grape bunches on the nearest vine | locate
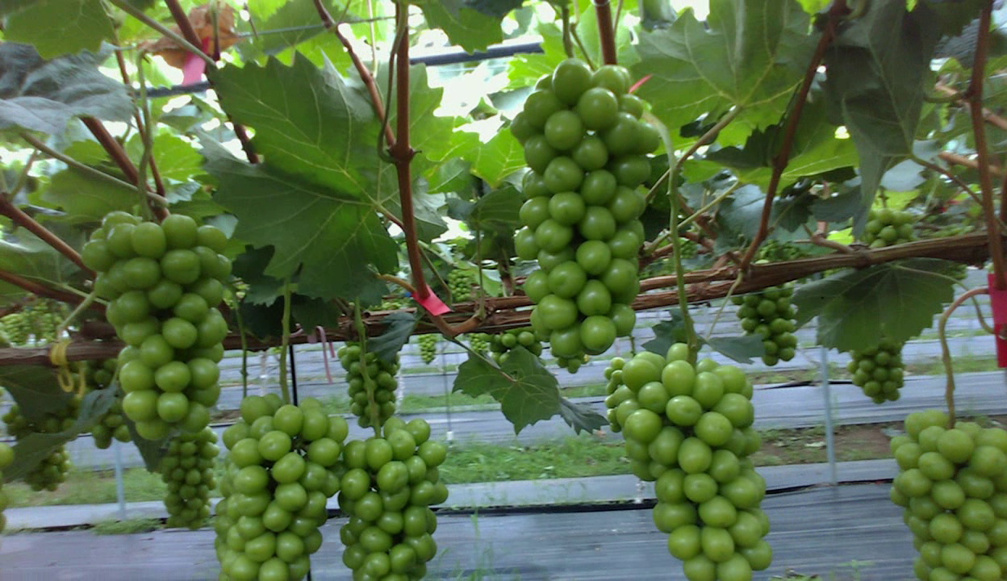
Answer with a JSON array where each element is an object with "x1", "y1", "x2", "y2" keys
[
  {"x1": 886, "y1": 408, "x2": 1006, "y2": 580},
  {"x1": 336, "y1": 416, "x2": 446, "y2": 580},
  {"x1": 81, "y1": 211, "x2": 230, "y2": 438},
  {"x1": 513, "y1": 60, "x2": 661, "y2": 360},
  {"x1": 612, "y1": 342, "x2": 774, "y2": 579},
  {"x1": 212, "y1": 392, "x2": 348, "y2": 580}
]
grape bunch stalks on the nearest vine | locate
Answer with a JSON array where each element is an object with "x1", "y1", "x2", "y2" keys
[
  {"x1": 279, "y1": 282, "x2": 290, "y2": 403},
  {"x1": 562, "y1": 6, "x2": 573, "y2": 57},
  {"x1": 137, "y1": 49, "x2": 154, "y2": 220},
  {"x1": 355, "y1": 298, "x2": 381, "y2": 437},
  {"x1": 643, "y1": 113, "x2": 698, "y2": 366},
  {"x1": 938, "y1": 285, "x2": 989, "y2": 428}
]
